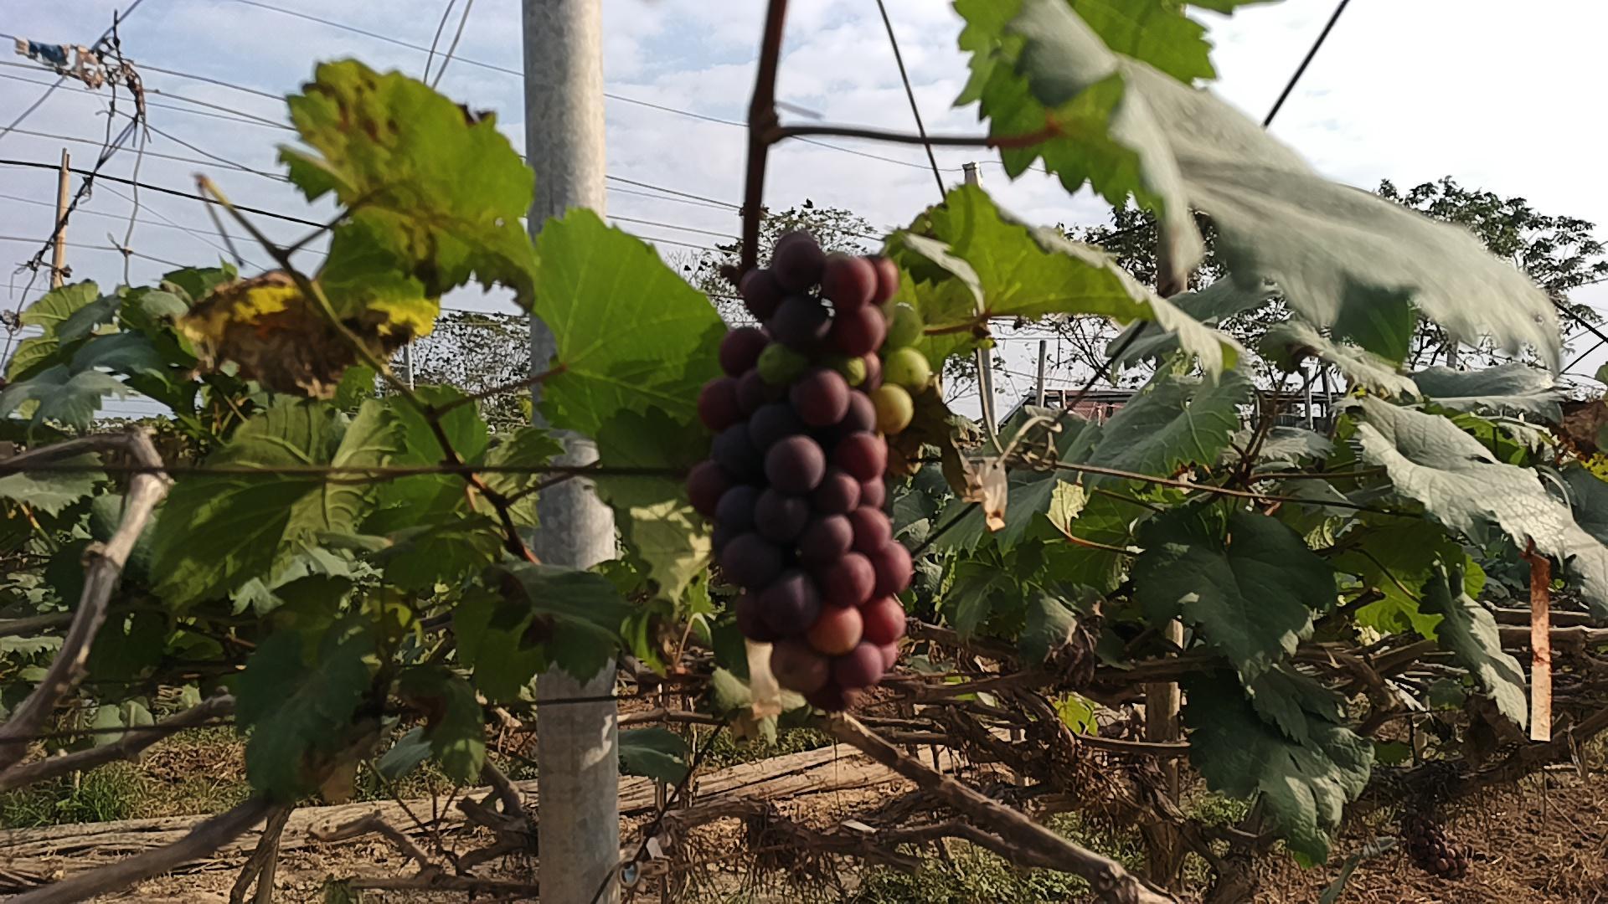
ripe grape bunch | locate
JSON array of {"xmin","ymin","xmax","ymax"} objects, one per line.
[{"xmin": 1401, "ymin": 795, "xmax": 1472, "ymax": 880}]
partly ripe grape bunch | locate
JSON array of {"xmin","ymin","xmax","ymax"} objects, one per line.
[{"xmin": 689, "ymin": 231, "xmax": 929, "ymax": 709}]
